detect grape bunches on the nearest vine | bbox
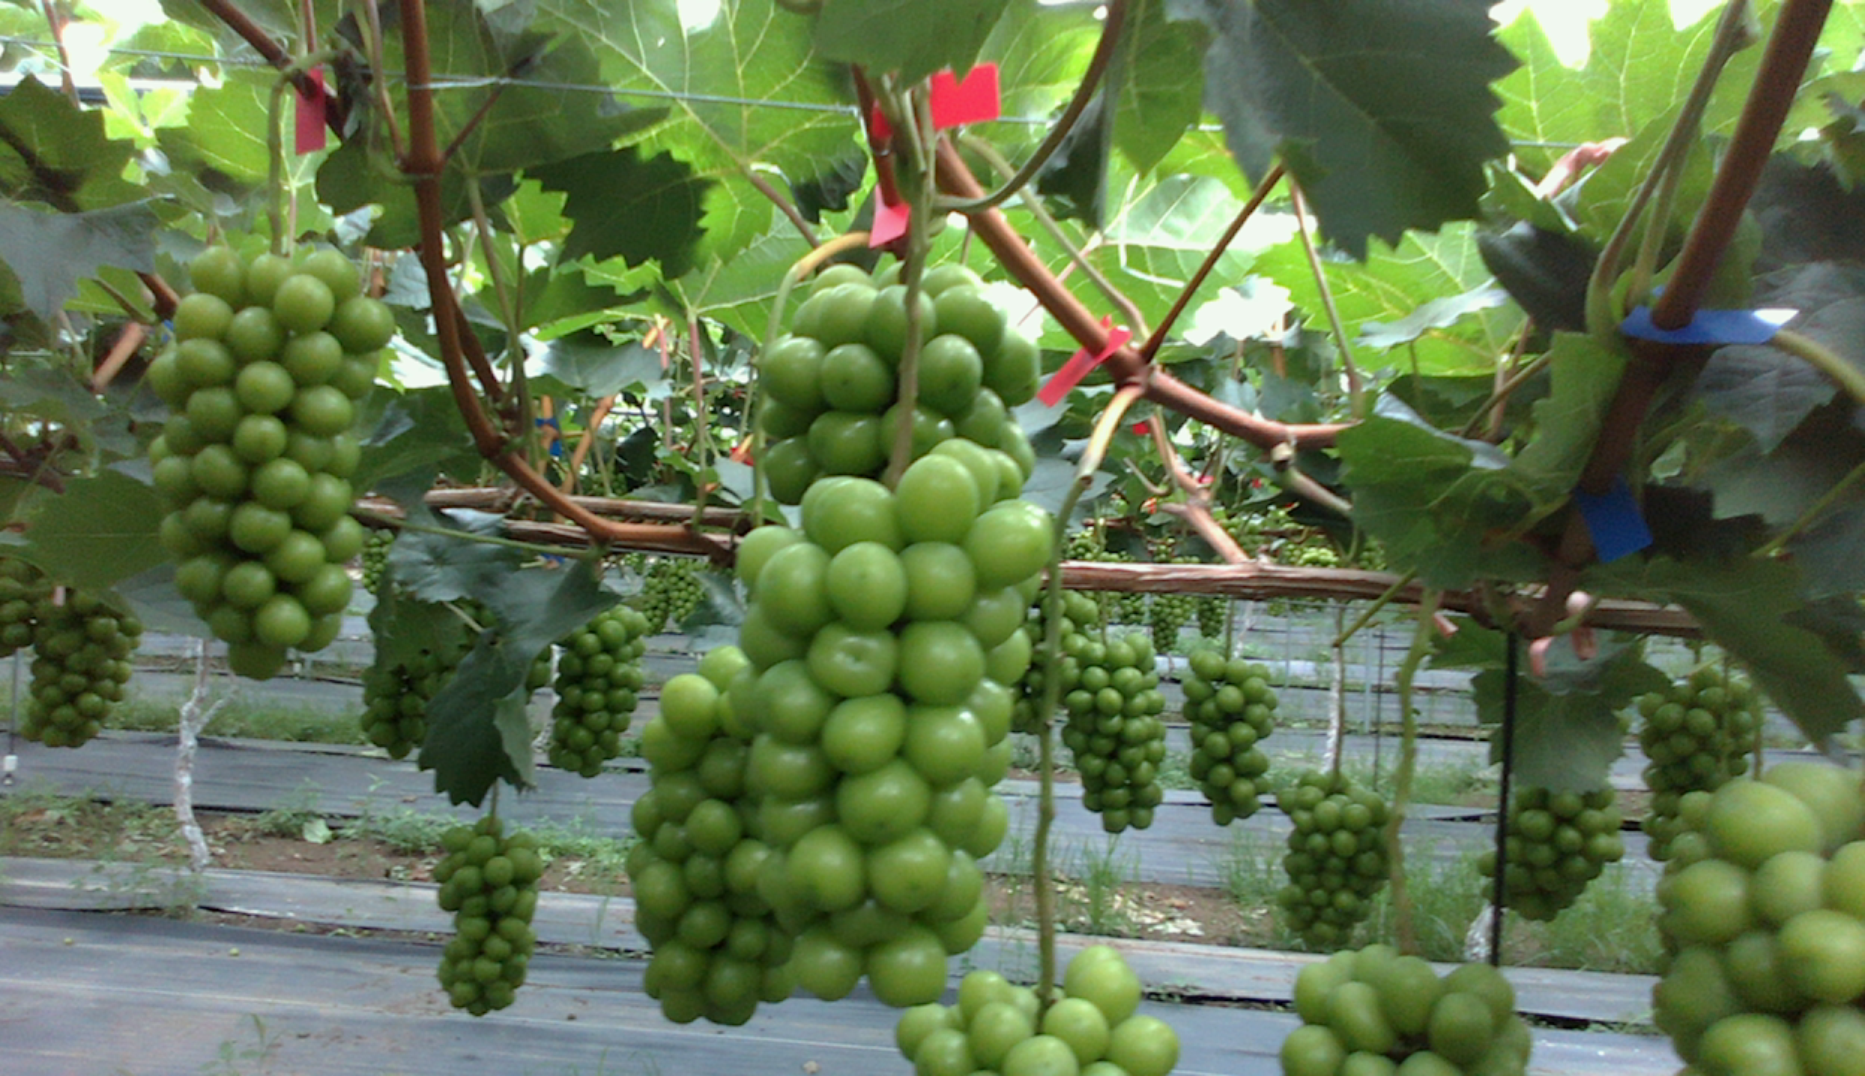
[728,436,1055,1007]
[1279,946,1530,1075]
[1666,762,1864,1075]
[626,643,794,1028]
[146,245,398,683]
[758,259,1042,507]
[897,944,1179,1075]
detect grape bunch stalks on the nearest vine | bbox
[1034,386,1143,1031]
[870,78,930,492]
[753,233,873,531]
[1385,592,1442,961]
[266,49,339,256]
